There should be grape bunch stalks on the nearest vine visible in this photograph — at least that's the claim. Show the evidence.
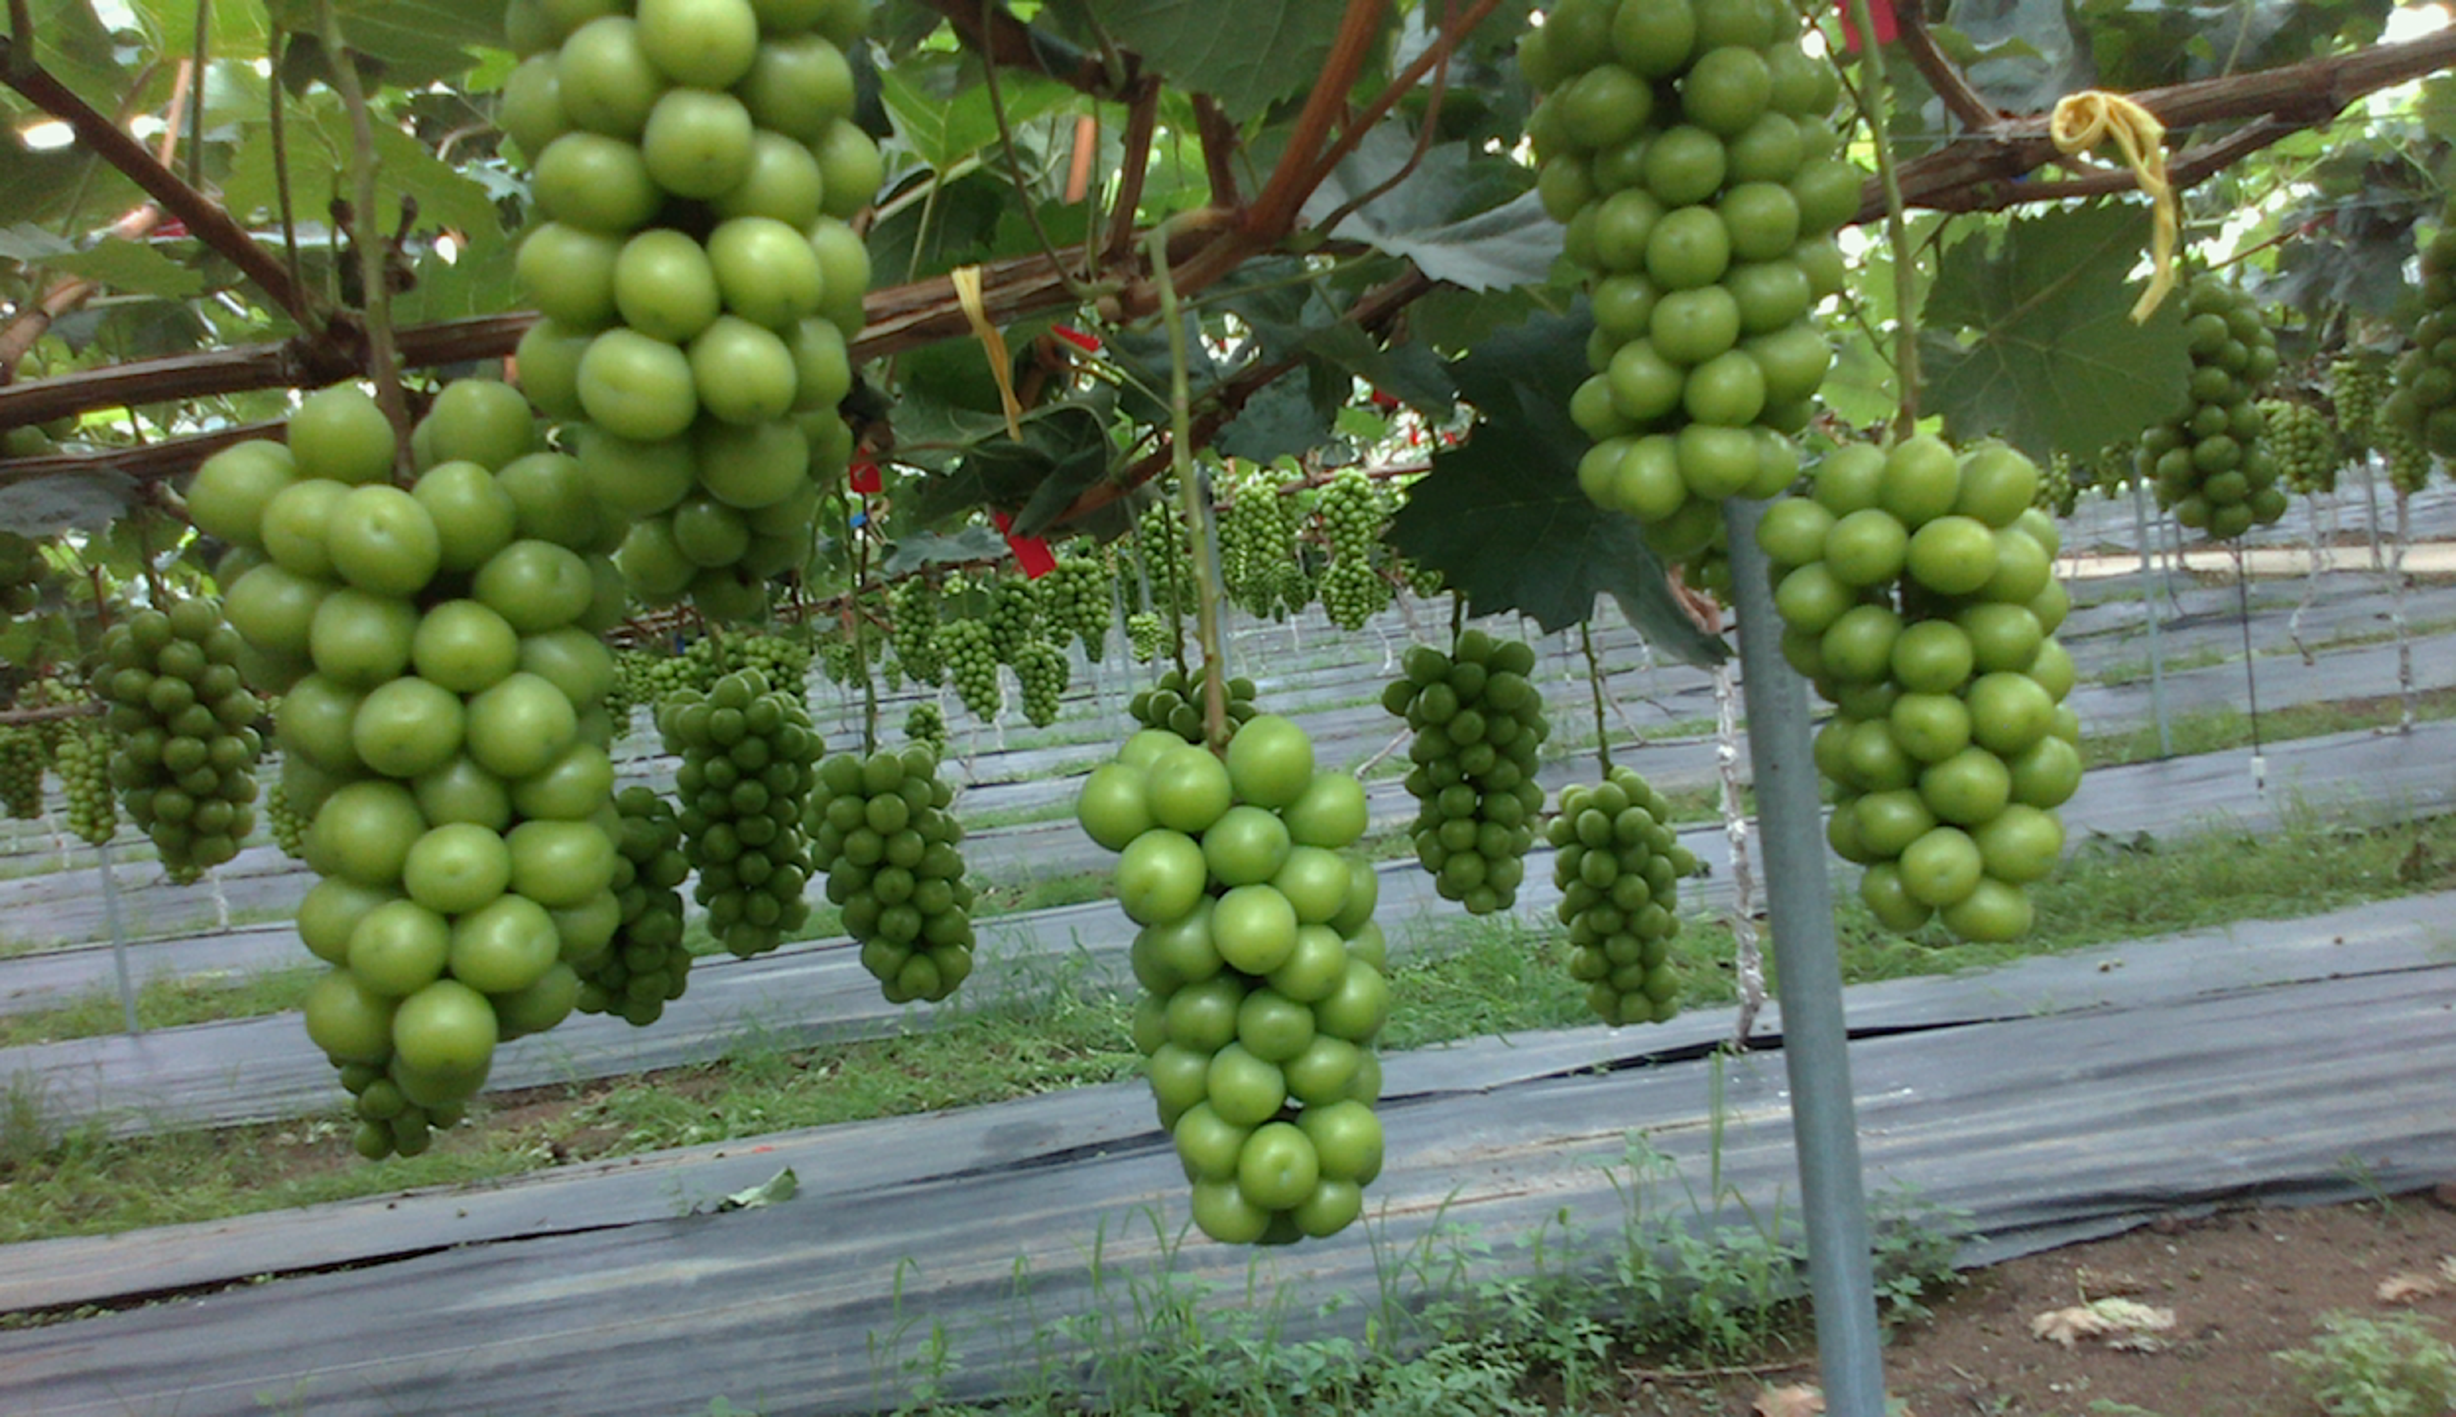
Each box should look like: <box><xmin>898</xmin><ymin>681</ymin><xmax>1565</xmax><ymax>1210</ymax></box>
<box><xmin>323</xmin><ymin>8</ymin><xmax>419</xmax><ymax>486</ymax></box>
<box><xmin>1852</xmin><ymin>2</ymin><xmax>1919</xmax><ymax>441</ymax></box>
<box><xmin>1141</xmin><ymin>211</ymin><xmax>1230</xmax><ymax>756</ymax></box>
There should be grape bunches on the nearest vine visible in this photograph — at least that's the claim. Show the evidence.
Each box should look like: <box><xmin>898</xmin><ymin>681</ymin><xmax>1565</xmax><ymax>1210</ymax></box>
<box><xmin>1078</xmin><ymin>714</ymin><xmax>1391</xmax><ymax>1246</ymax></box>
<box><xmin>1519</xmin><ymin>2</ymin><xmax>1866</xmax><ymax>553</ymax></box>
<box><xmin>1759</xmin><ymin>439</ymin><xmax>2082</xmax><ymax>939</ymax></box>
<box><xmin>187</xmin><ymin>380</ymin><xmax>622</xmax><ymax>1112</ymax></box>
<box><xmin>494</xmin><ymin>0</ymin><xmax>886</xmax><ymax>525</ymax></box>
